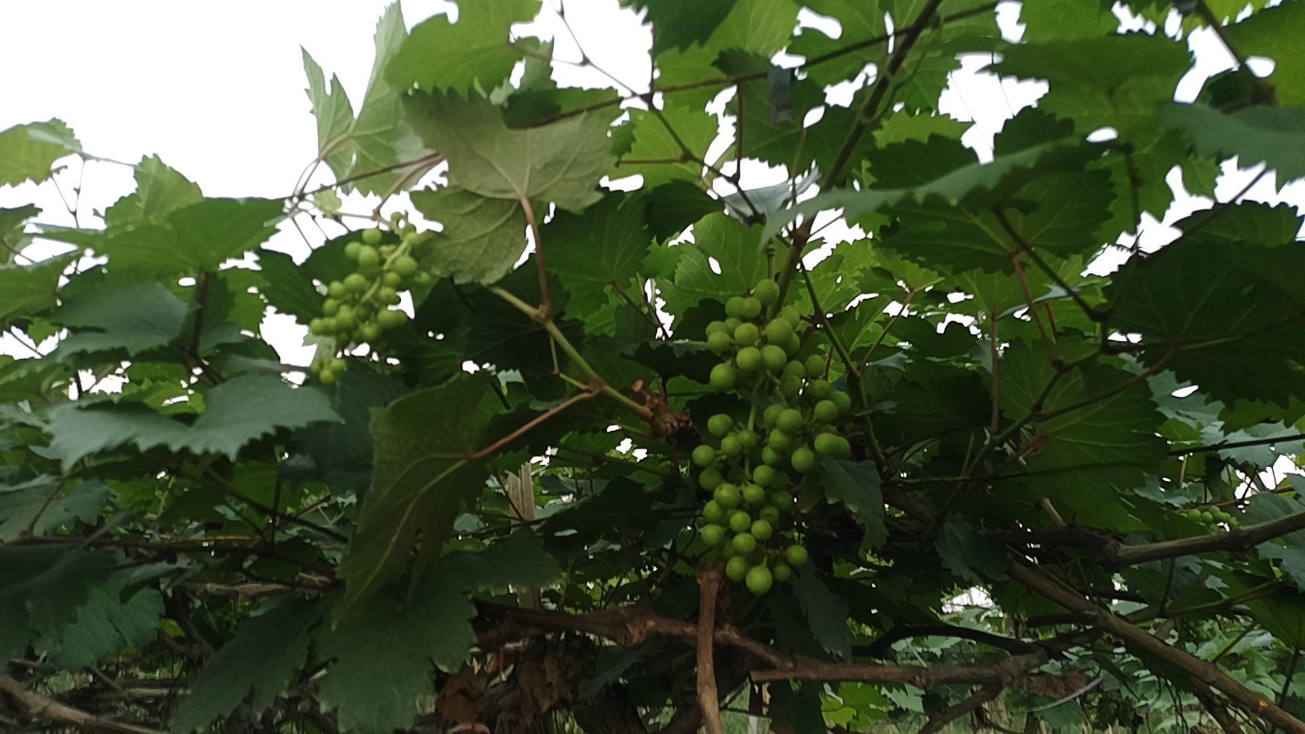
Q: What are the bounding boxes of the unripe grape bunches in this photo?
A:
[693,281,850,595]
[307,211,438,383]
[1176,506,1238,533]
